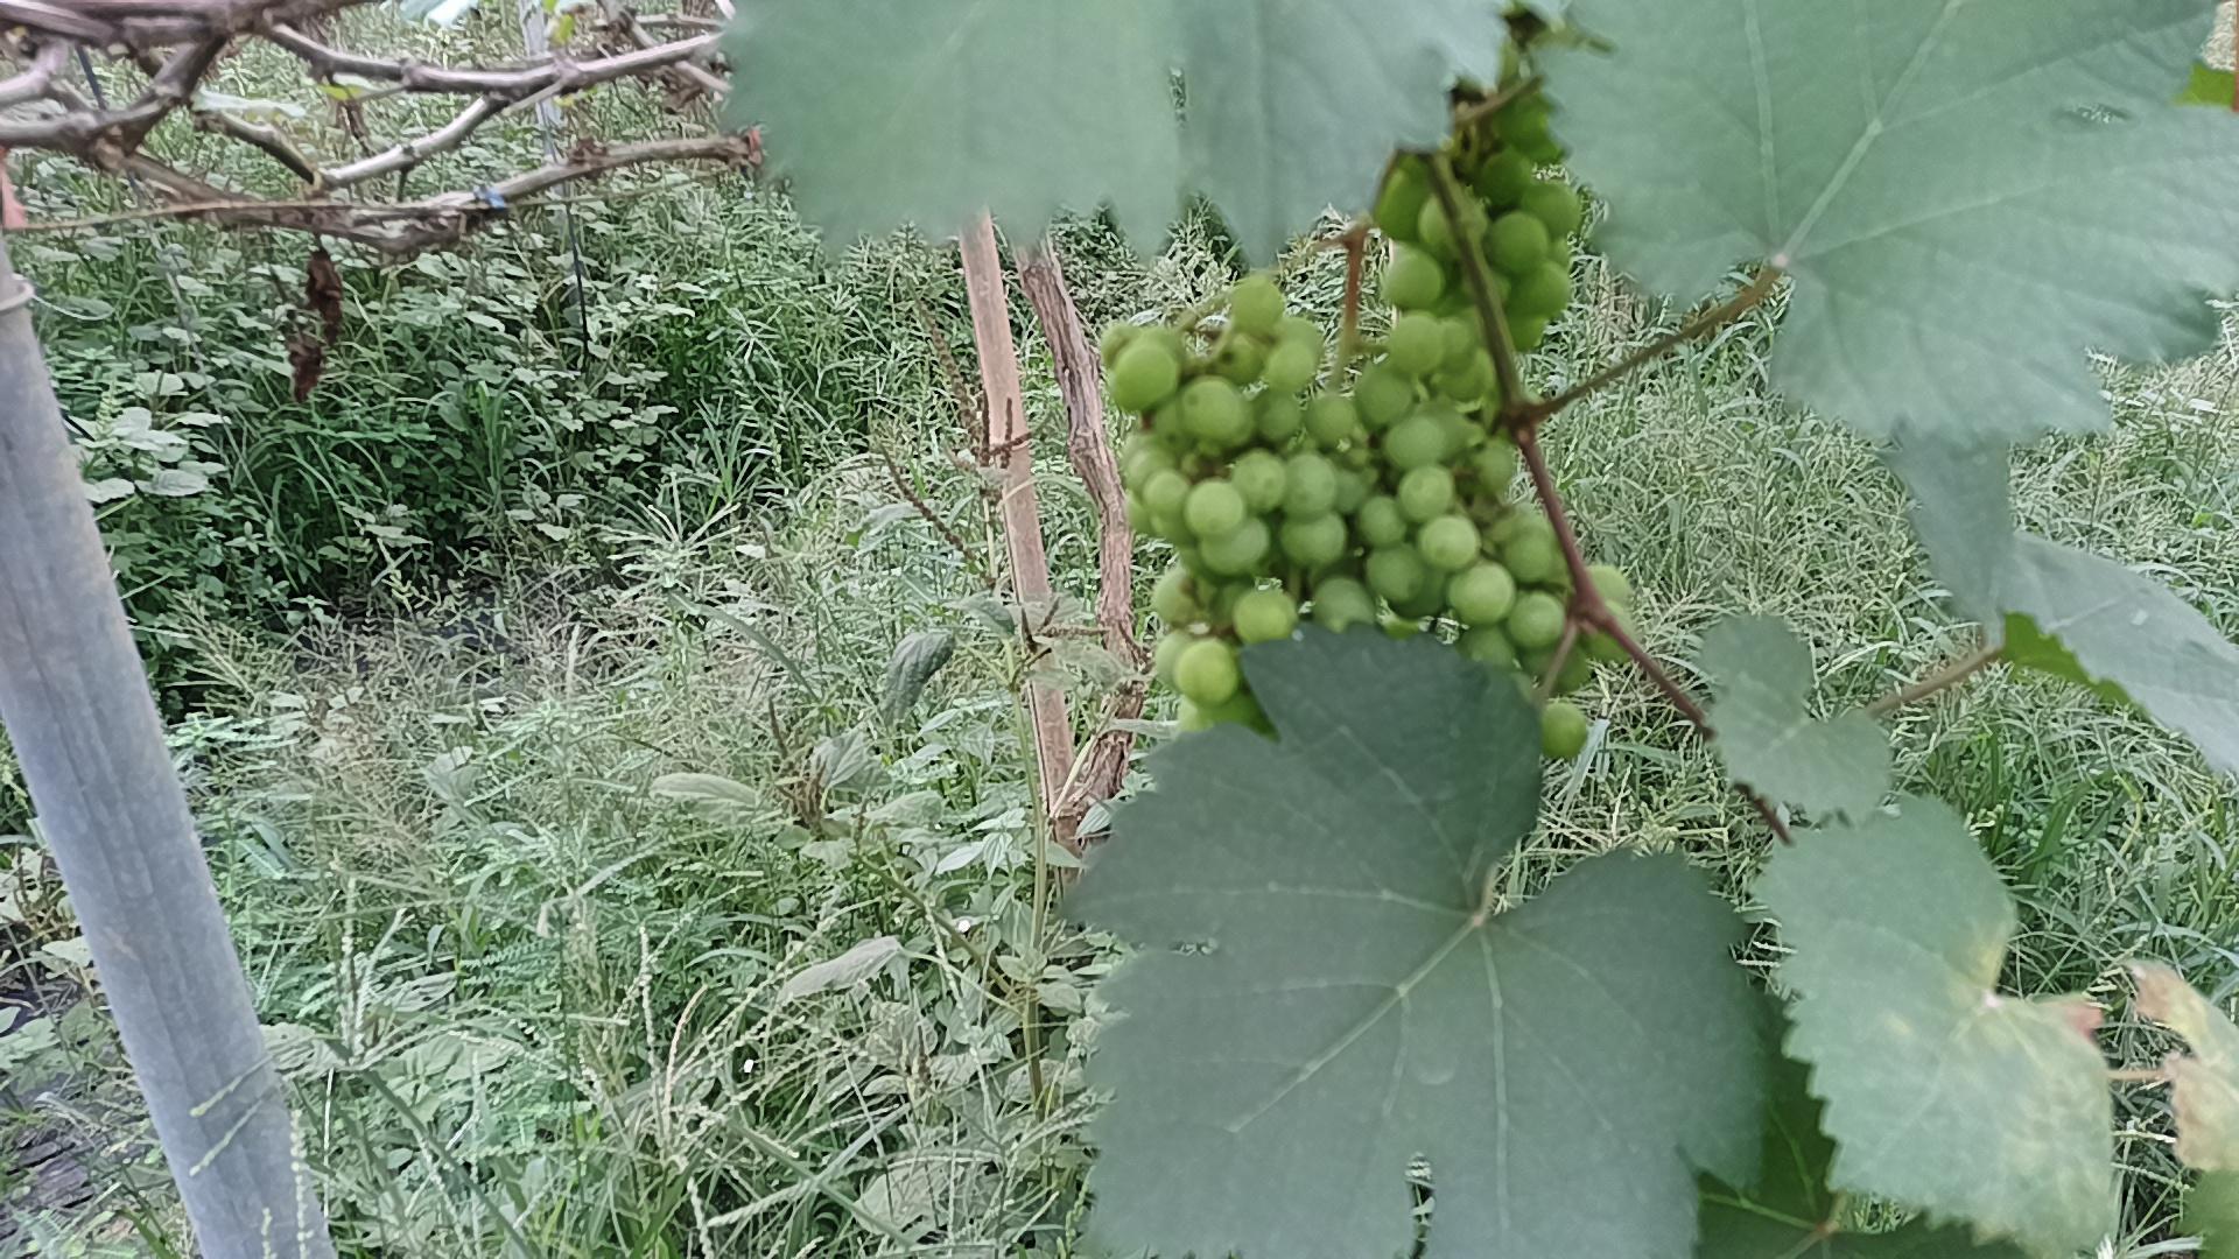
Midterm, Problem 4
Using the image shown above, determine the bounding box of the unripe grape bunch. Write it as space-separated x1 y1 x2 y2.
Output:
1101 0 1640 759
